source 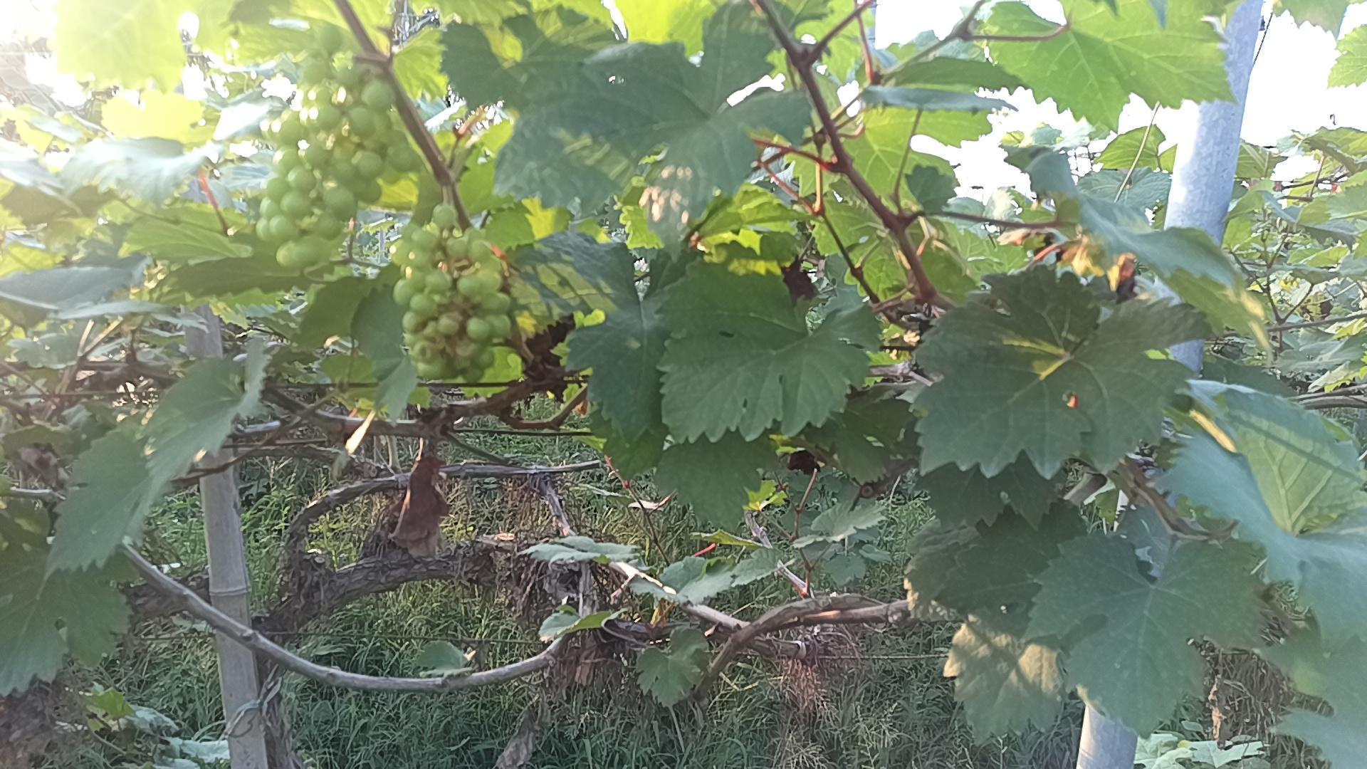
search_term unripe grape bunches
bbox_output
[255,23,423,269]
[390,204,511,381]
